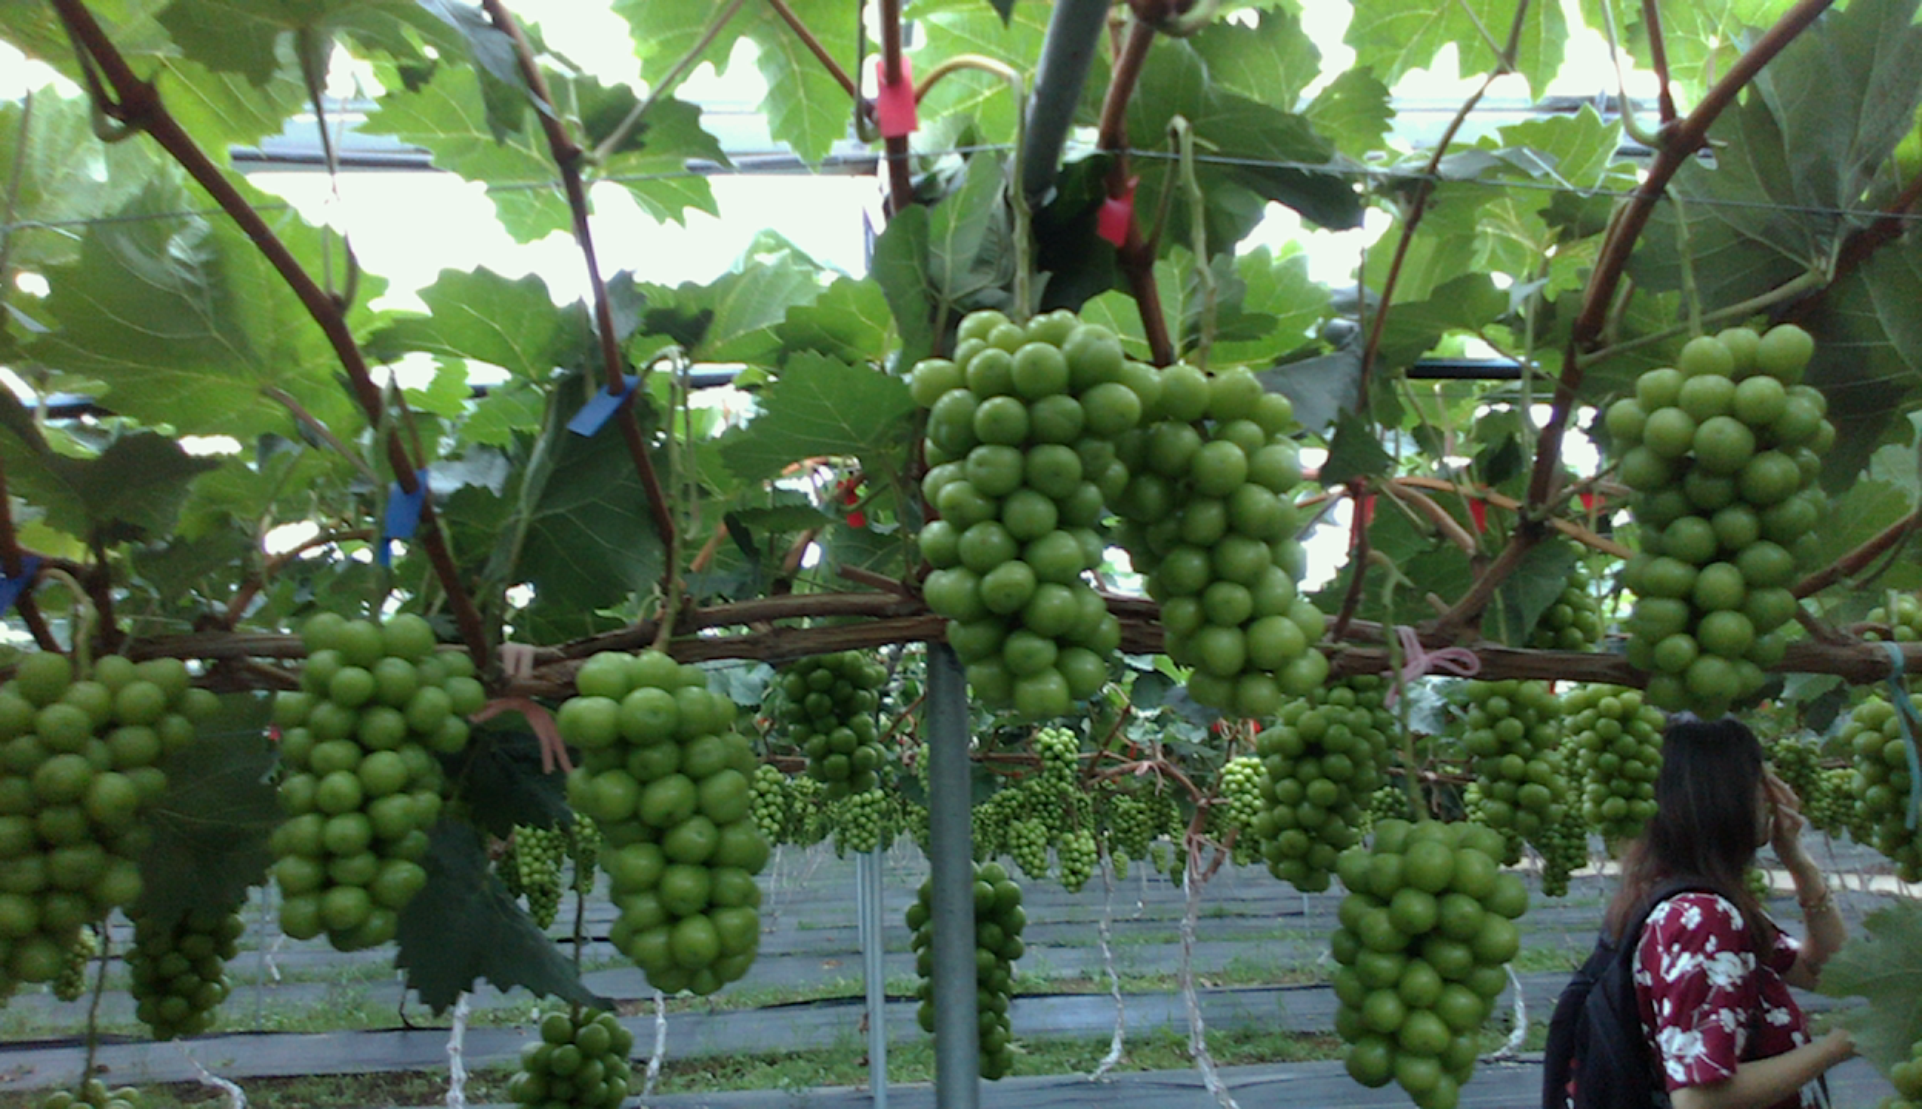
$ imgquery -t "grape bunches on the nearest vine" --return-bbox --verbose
[1110,367,1326,718]
[0,653,220,1000]
[558,652,768,997]
[910,308,1161,724]
[274,613,485,955]
[1602,325,1836,722]
[1331,818,1528,1107]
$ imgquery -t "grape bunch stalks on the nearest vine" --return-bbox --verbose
[1380,554,1429,818]
[45,570,99,676]
[1169,119,1214,365]
[1668,185,1705,334]
[645,348,682,653]
[918,55,1033,323]
[370,377,394,619]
